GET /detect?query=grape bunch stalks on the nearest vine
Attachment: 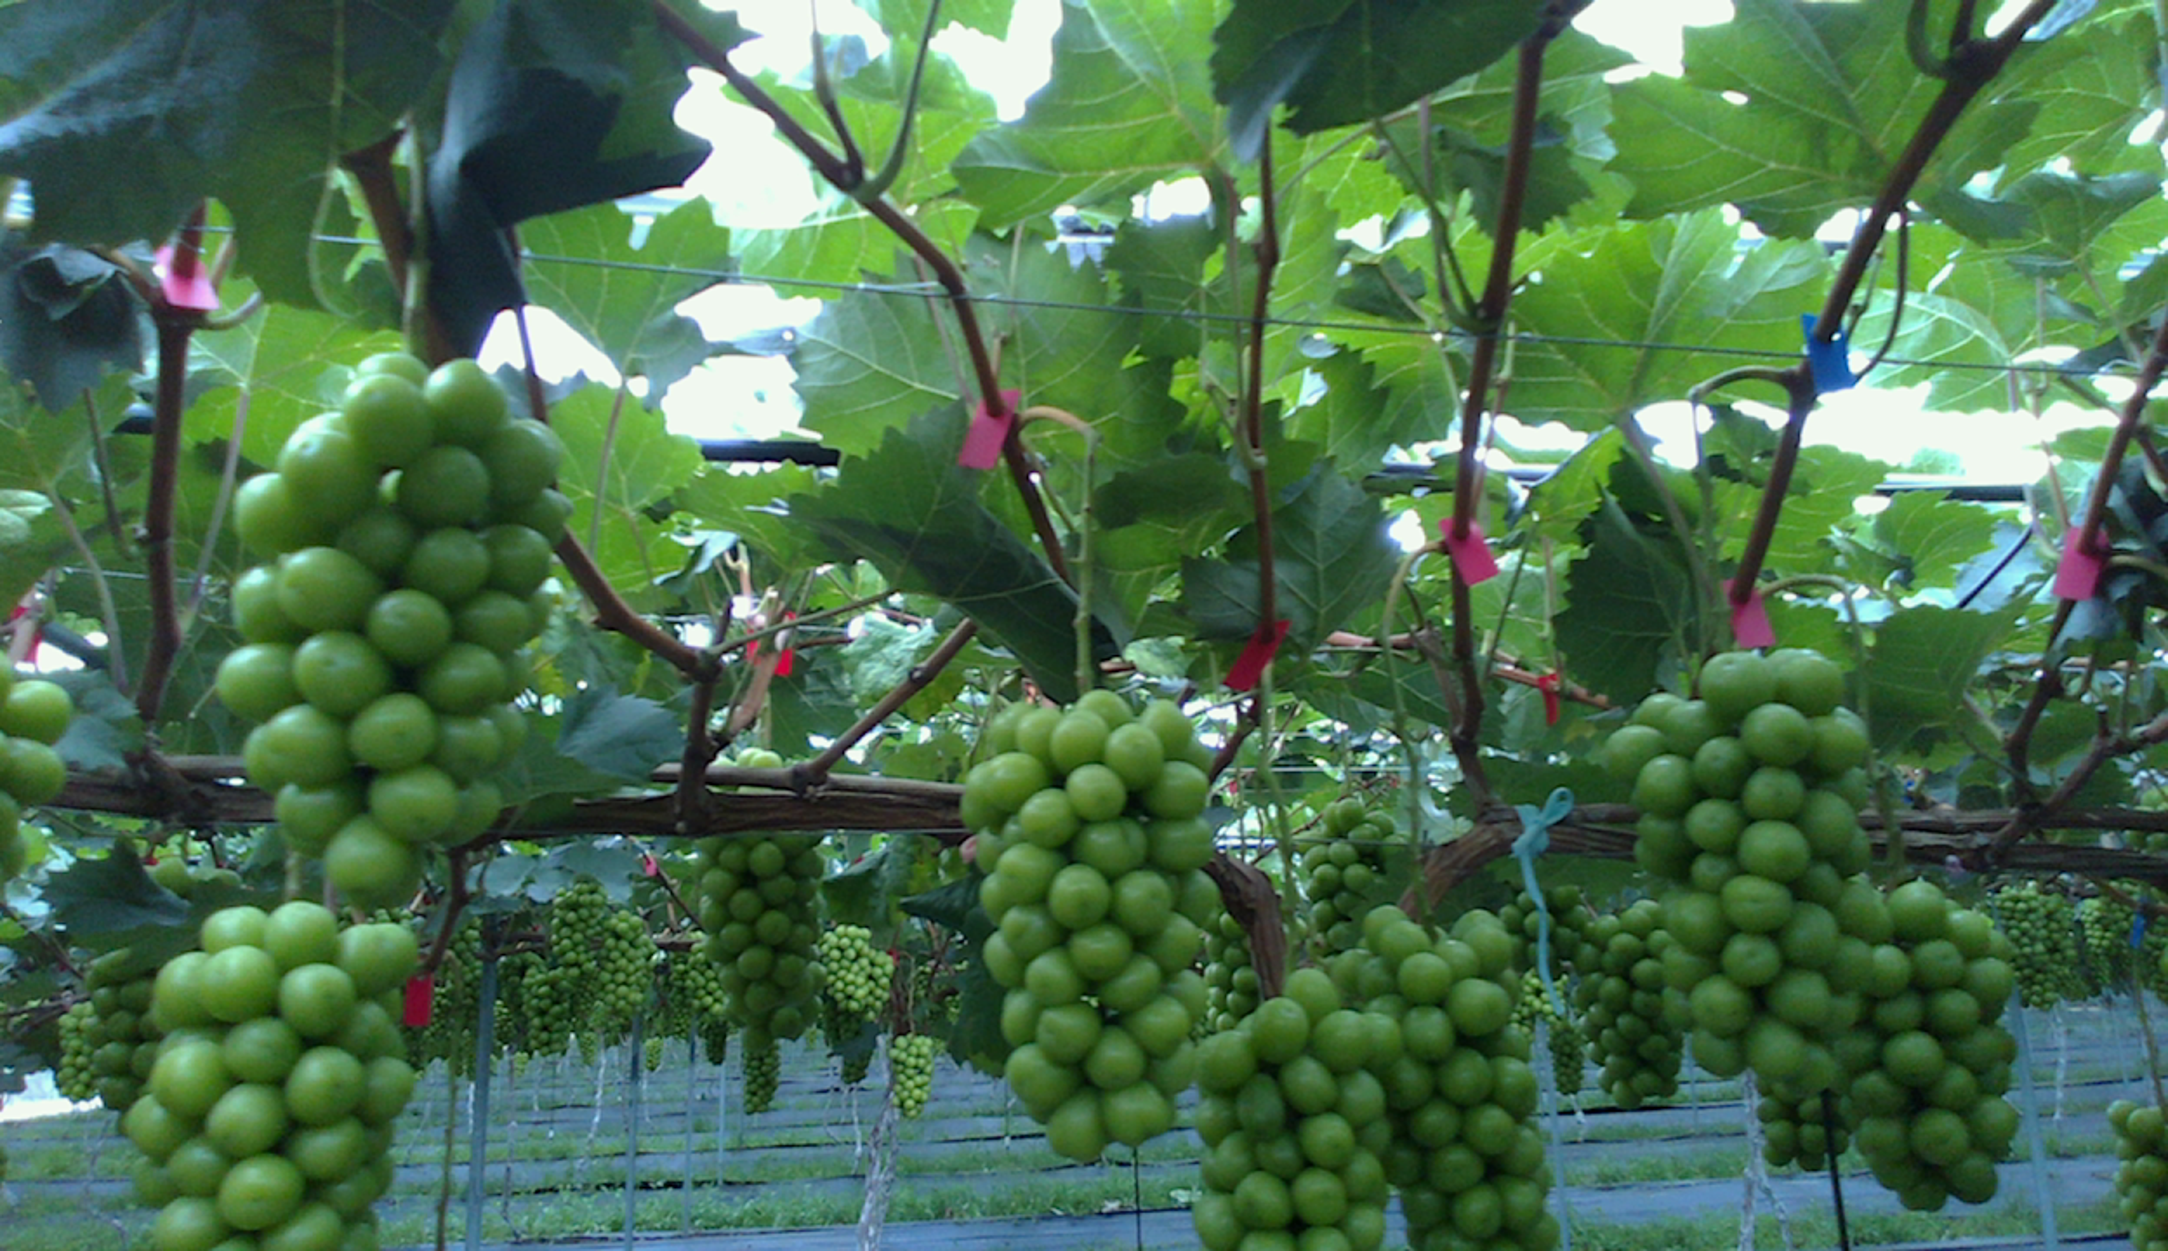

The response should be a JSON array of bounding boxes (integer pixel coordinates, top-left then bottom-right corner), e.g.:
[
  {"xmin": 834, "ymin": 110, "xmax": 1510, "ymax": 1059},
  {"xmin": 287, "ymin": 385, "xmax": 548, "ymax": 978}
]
[
  {"xmin": 1016, "ymin": 407, "xmax": 1100, "ymax": 697},
  {"xmin": 1378, "ymin": 539, "xmax": 1447, "ymax": 942},
  {"xmin": 1259, "ymin": 660, "xmax": 1299, "ymax": 971},
  {"xmin": 1761, "ymin": 573, "xmax": 1904, "ymax": 891},
  {"xmin": 401, "ymin": 109, "xmax": 433, "ymax": 370},
  {"xmin": 281, "ymin": 851, "xmax": 304, "ymax": 903}
]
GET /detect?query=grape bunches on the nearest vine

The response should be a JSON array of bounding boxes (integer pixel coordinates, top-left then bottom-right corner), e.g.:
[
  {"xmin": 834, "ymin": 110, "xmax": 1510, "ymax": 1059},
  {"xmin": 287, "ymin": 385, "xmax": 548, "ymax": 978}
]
[
  {"xmin": 1828, "ymin": 881, "xmax": 2020, "ymax": 1213},
  {"xmin": 1598, "ymin": 645, "xmax": 1885, "ymax": 1095},
  {"xmin": 1192, "ymin": 966, "xmax": 1404, "ymax": 1249},
  {"xmin": 1325, "ymin": 905, "xmax": 1562, "ymax": 1249},
  {"xmin": 212, "ymin": 351, "xmax": 575, "ymax": 914},
  {"xmin": 122, "ymin": 898, "xmax": 420, "ymax": 1248},
  {"xmin": 959, "ymin": 688, "xmax": 1219, "ymax": 1166}
]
